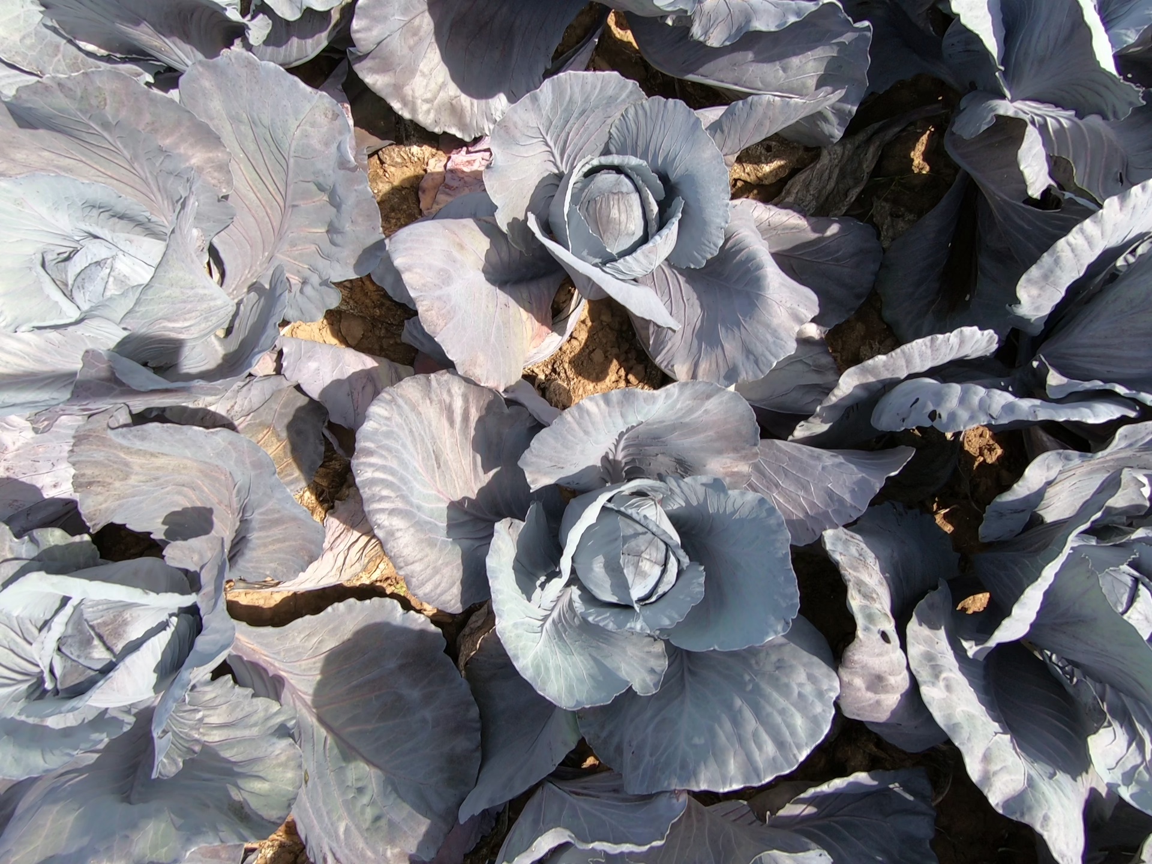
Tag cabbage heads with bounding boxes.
[576,495,681,603]
[560,170,662,263]
[64,232,205,334]
[1048,540,1151,661]
[40,577,185,711]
